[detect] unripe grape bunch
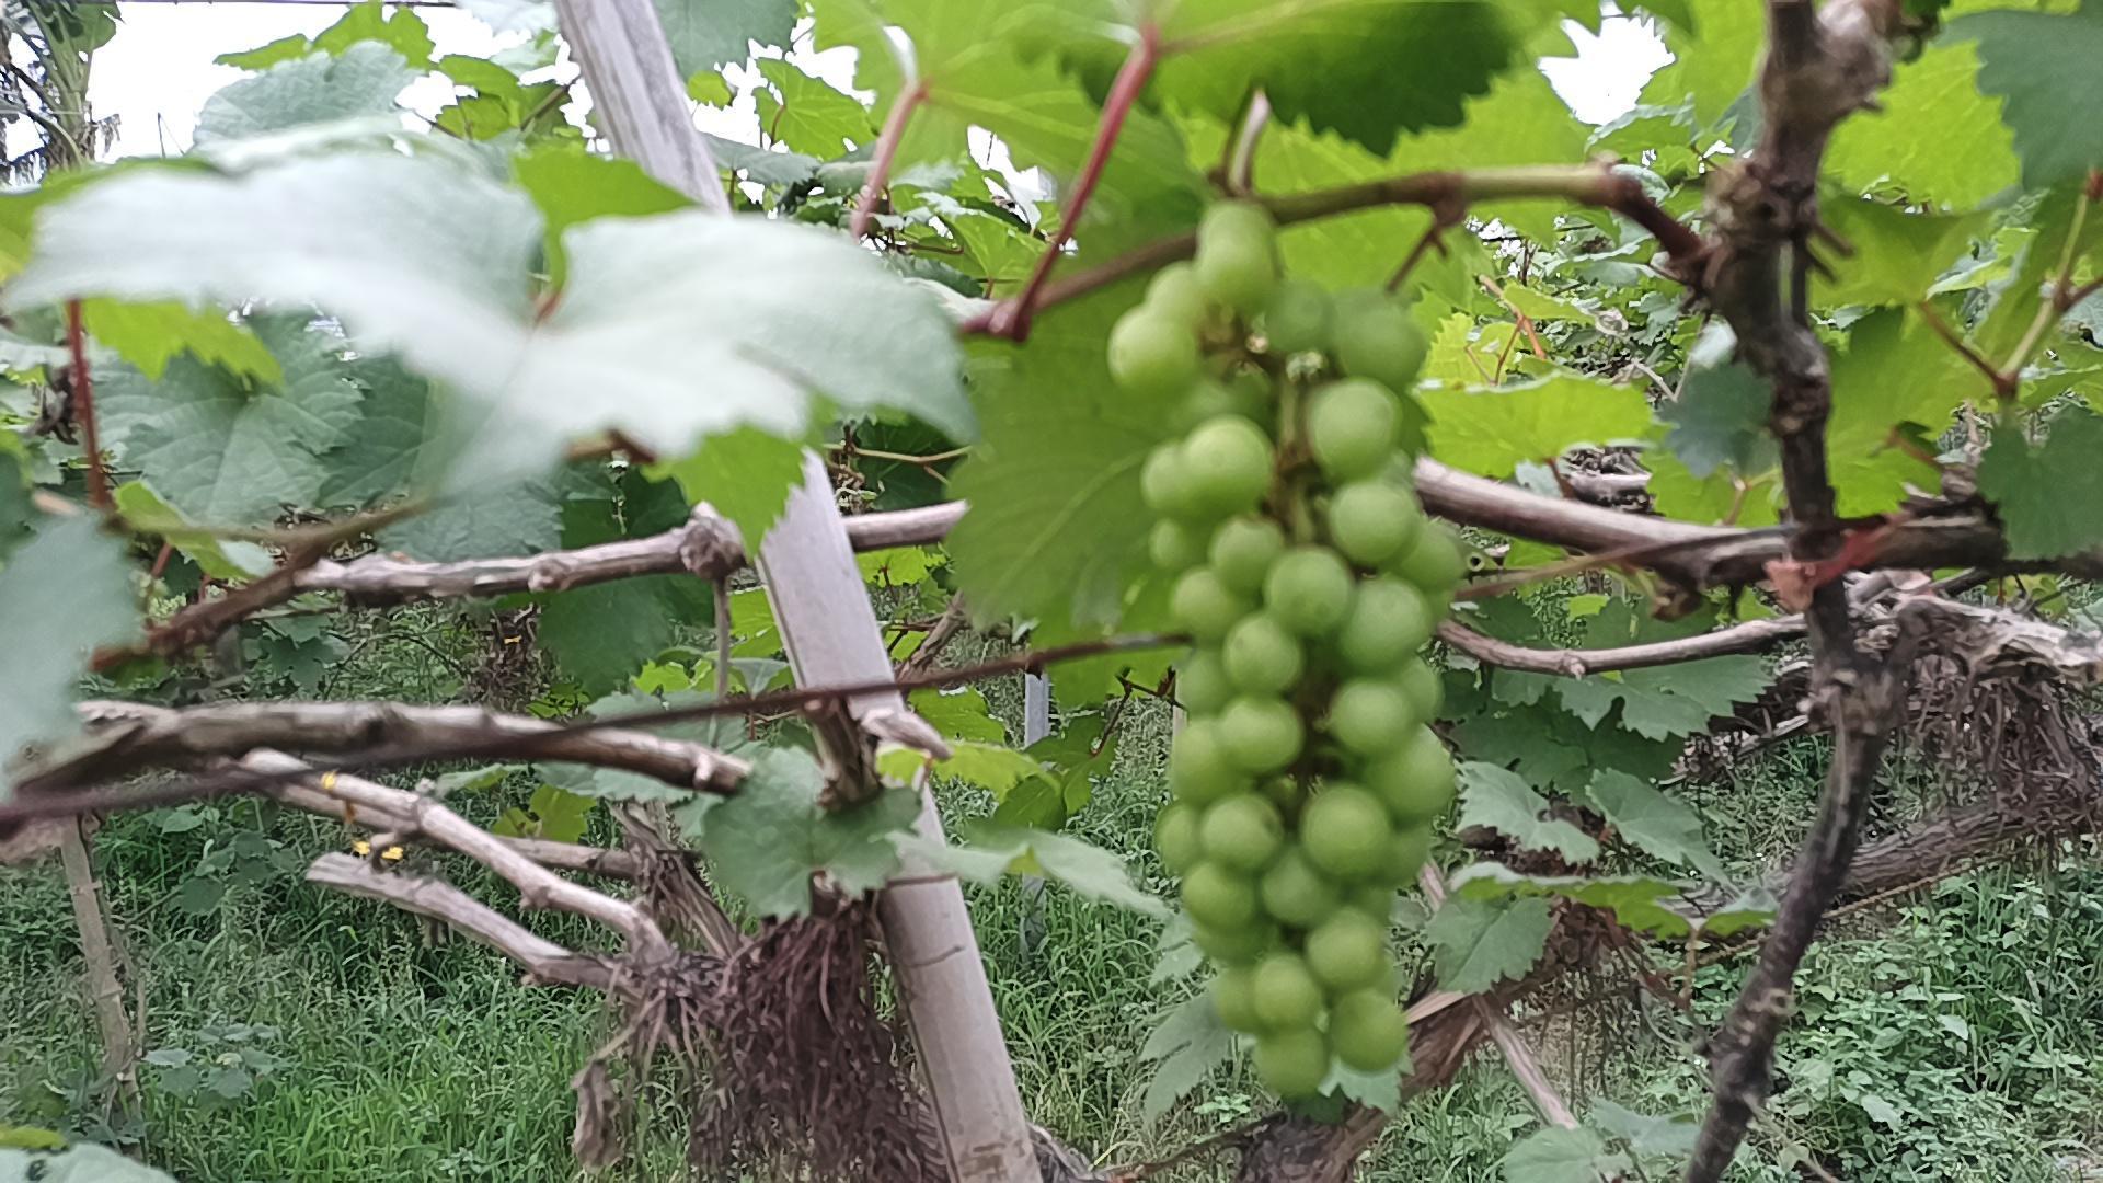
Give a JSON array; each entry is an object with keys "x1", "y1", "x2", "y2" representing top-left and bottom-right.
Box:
[{"x1": 1111, "y1": 198, "x2": 1462, "y2": 1101}]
